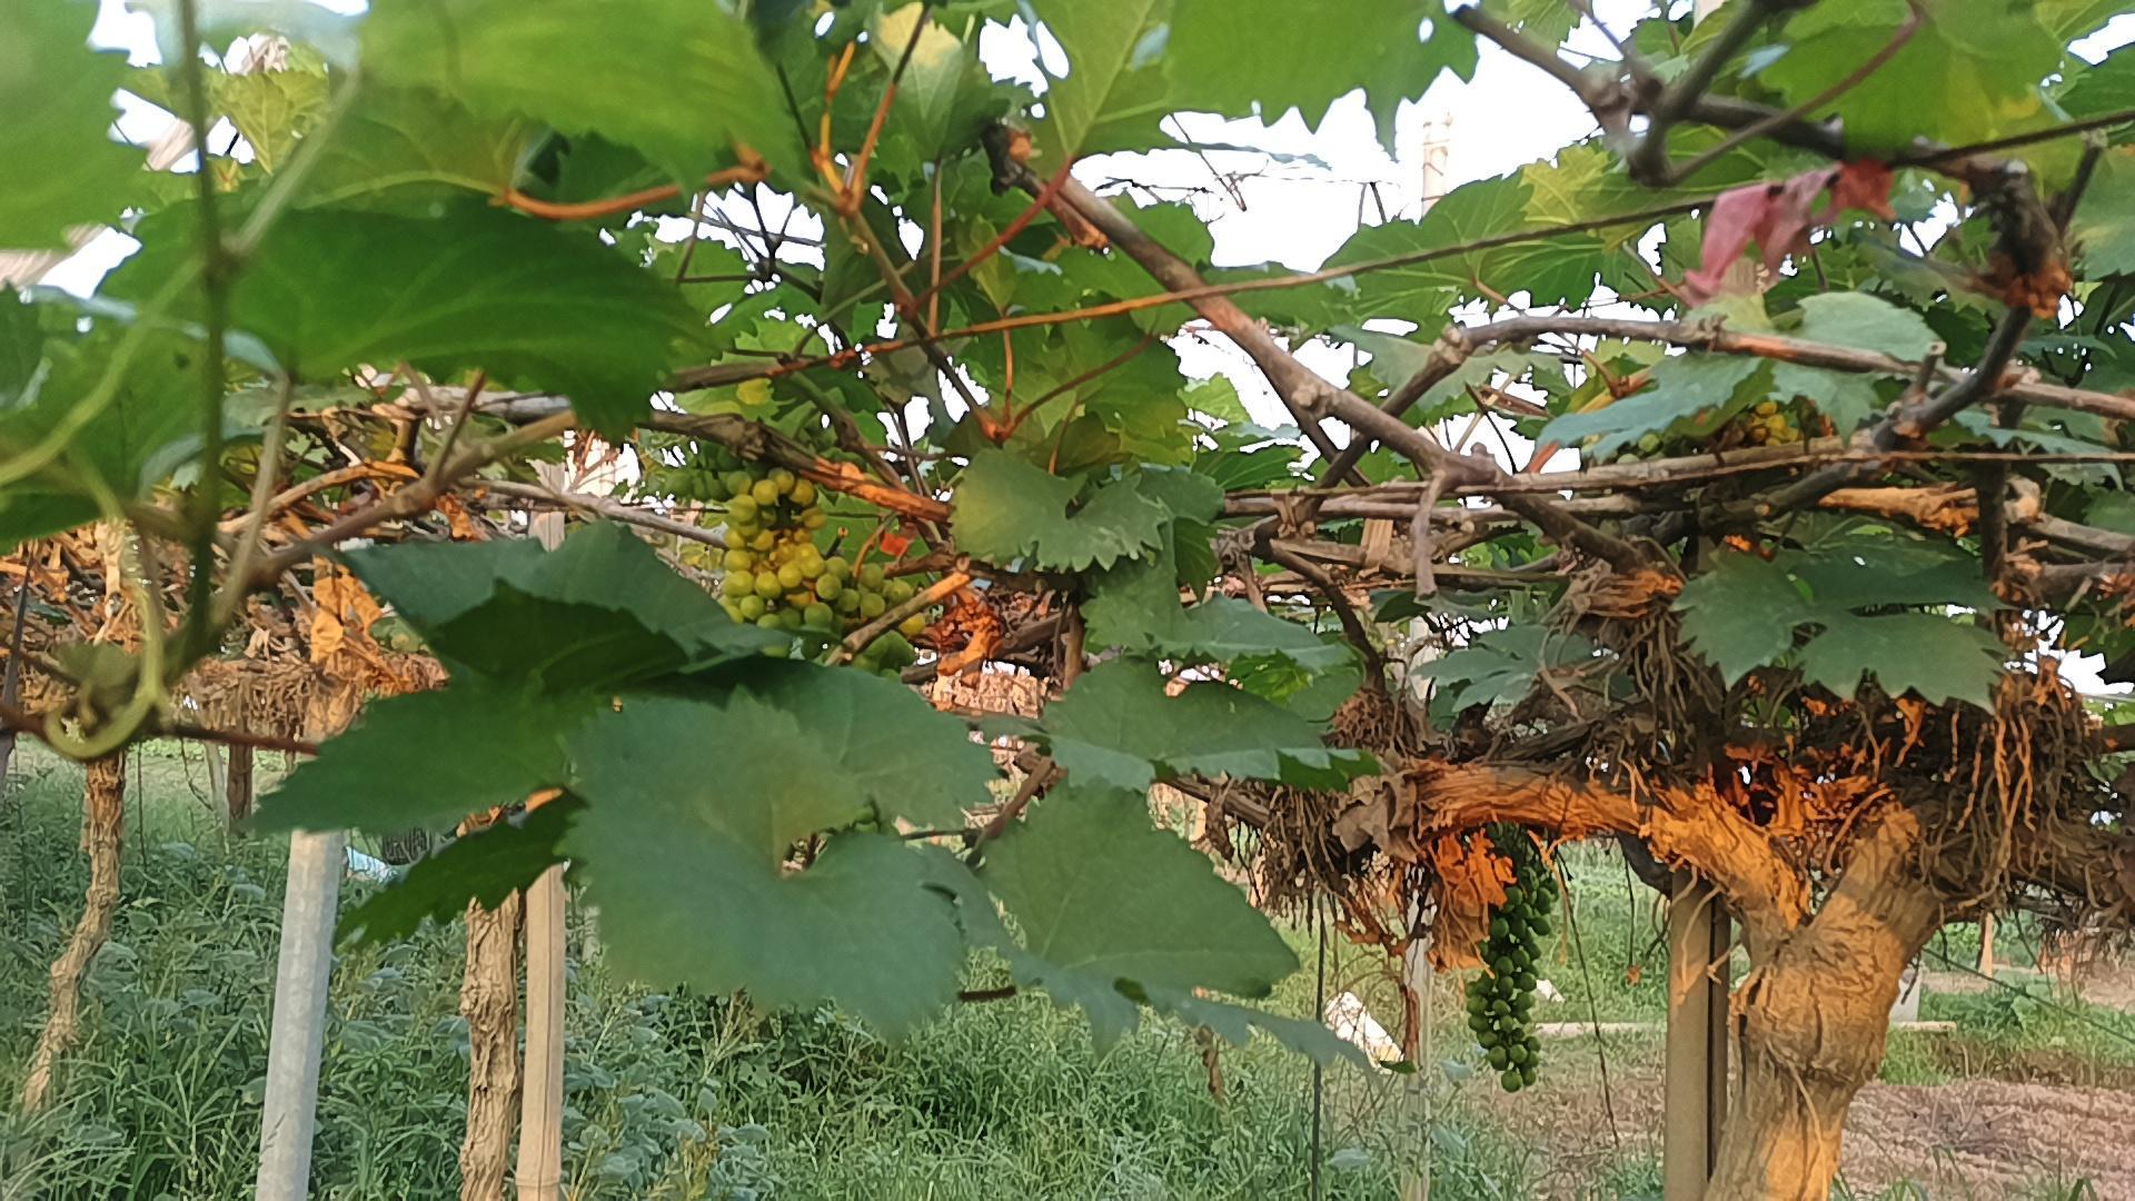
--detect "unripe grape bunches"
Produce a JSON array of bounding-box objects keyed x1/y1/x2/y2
[
  {"x1": 1466, "y1": 827, "x2": 1557, "y2": 1091},
  {"x1": 669, "y1": 466, "x2": 933, "y2": 636}
]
